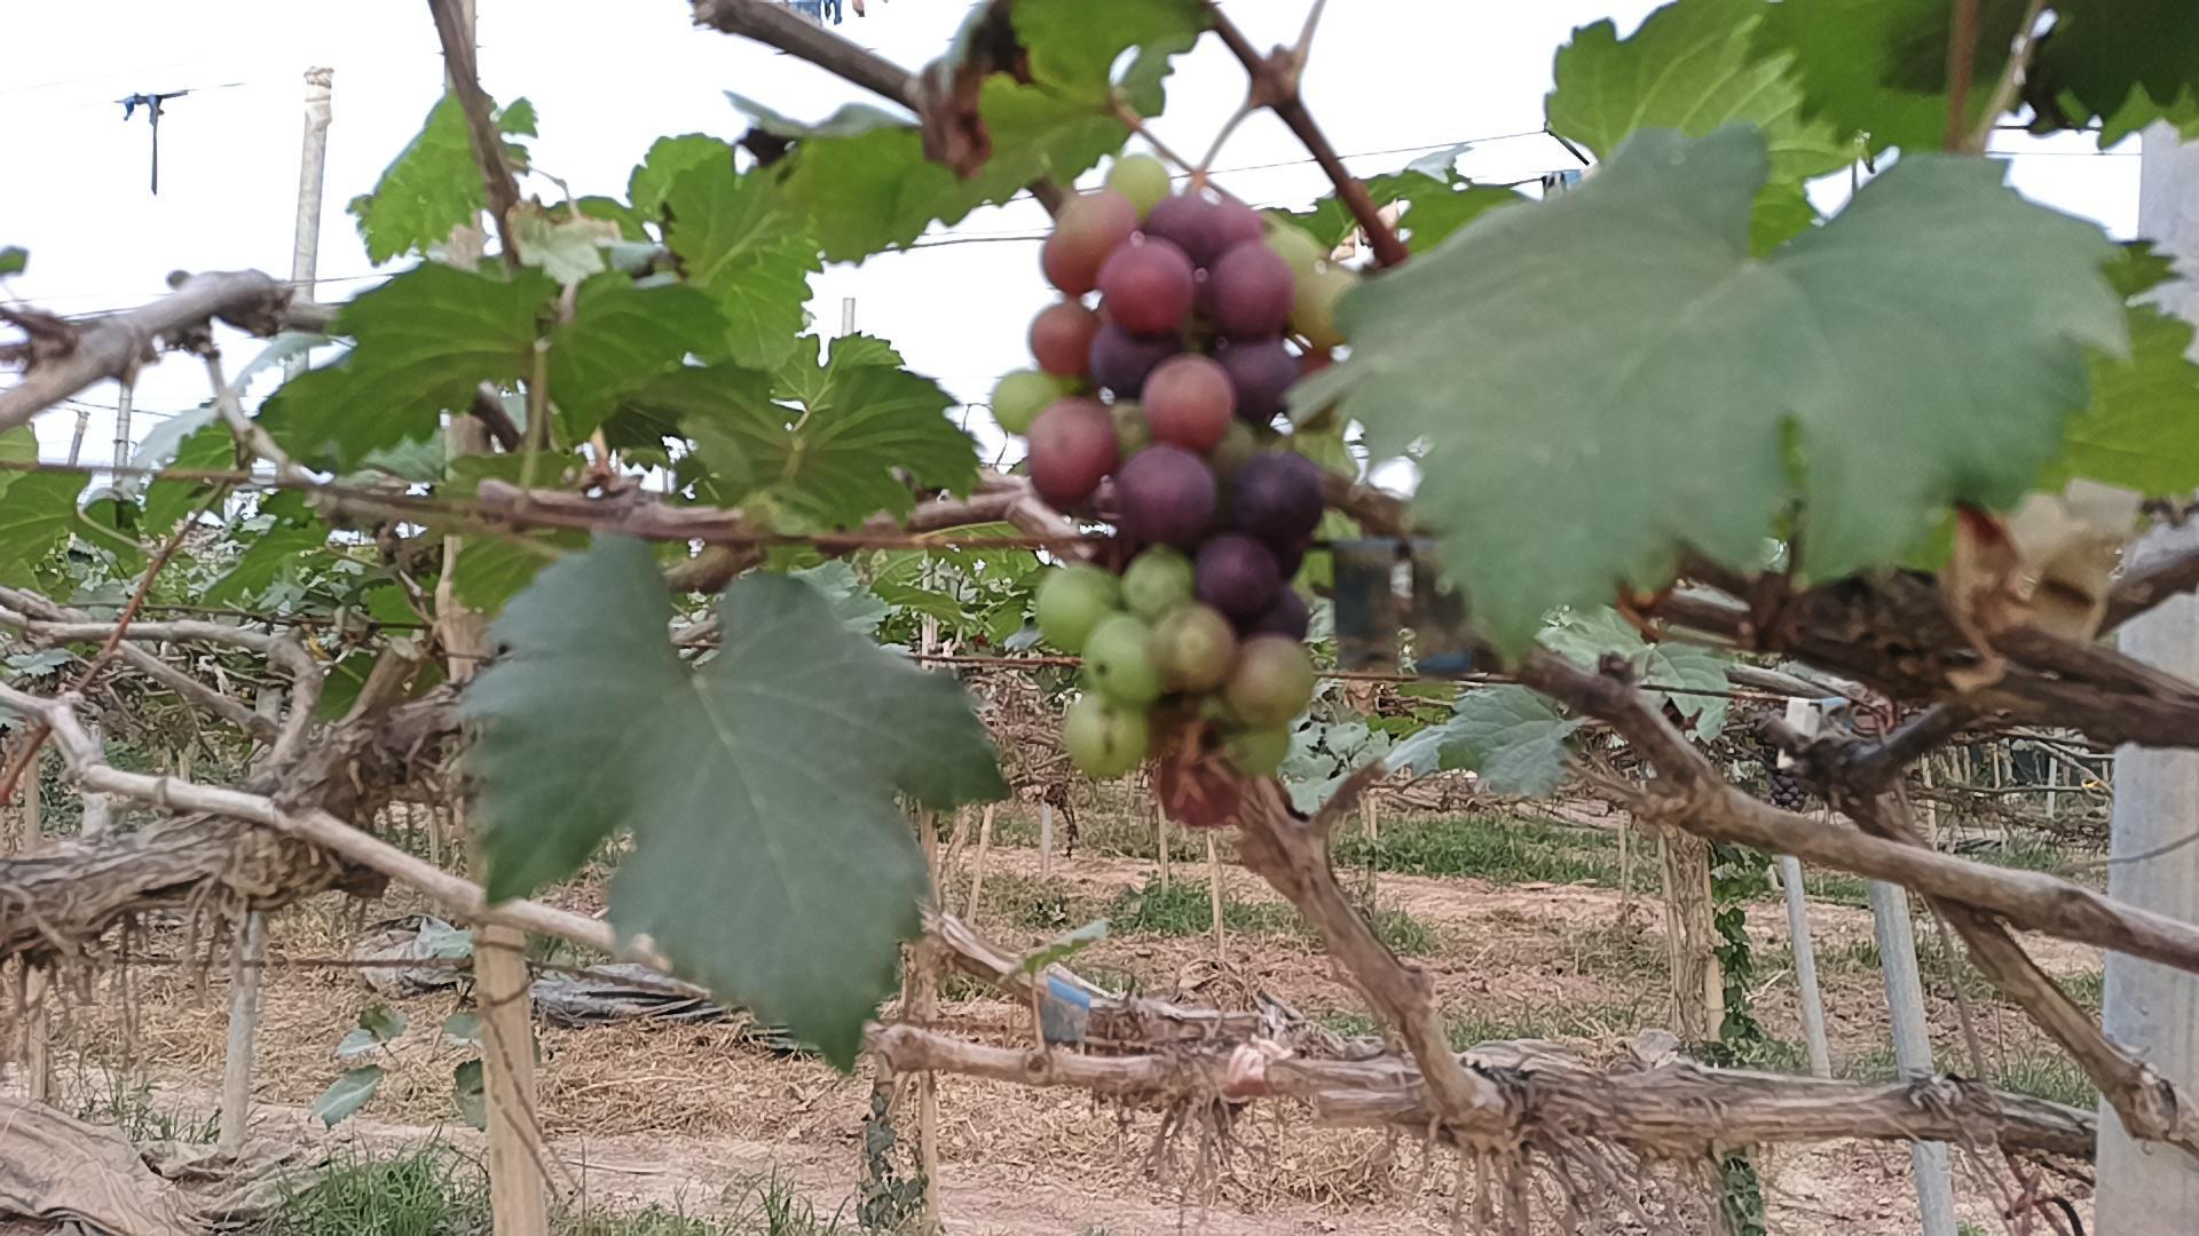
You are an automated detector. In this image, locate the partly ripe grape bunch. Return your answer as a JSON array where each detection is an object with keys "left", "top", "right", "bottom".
[{"left": 998, "top": 157, "right": 1359, "bottom": 827}]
